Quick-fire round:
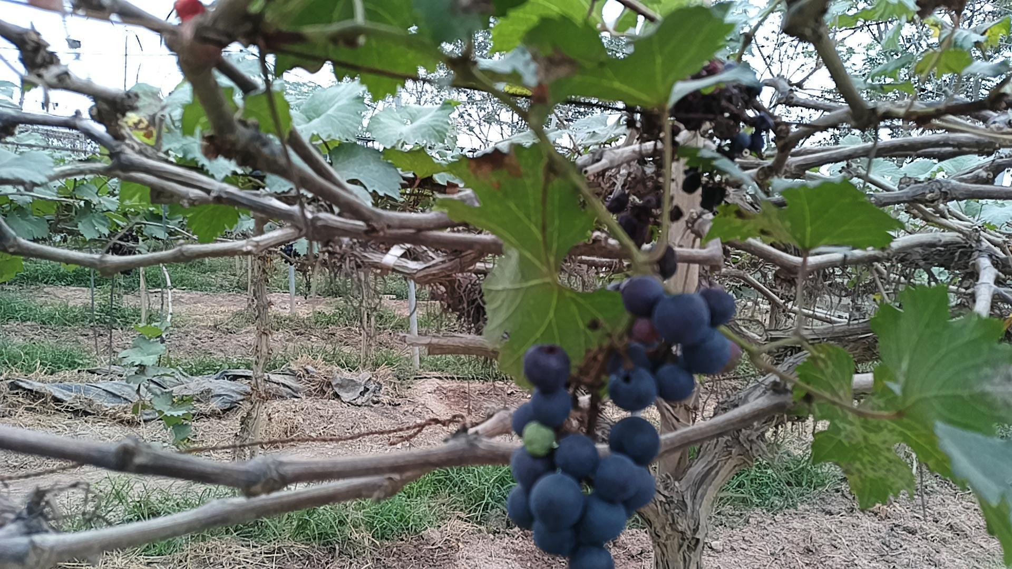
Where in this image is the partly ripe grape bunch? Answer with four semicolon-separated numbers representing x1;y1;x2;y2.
507;276;742;568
